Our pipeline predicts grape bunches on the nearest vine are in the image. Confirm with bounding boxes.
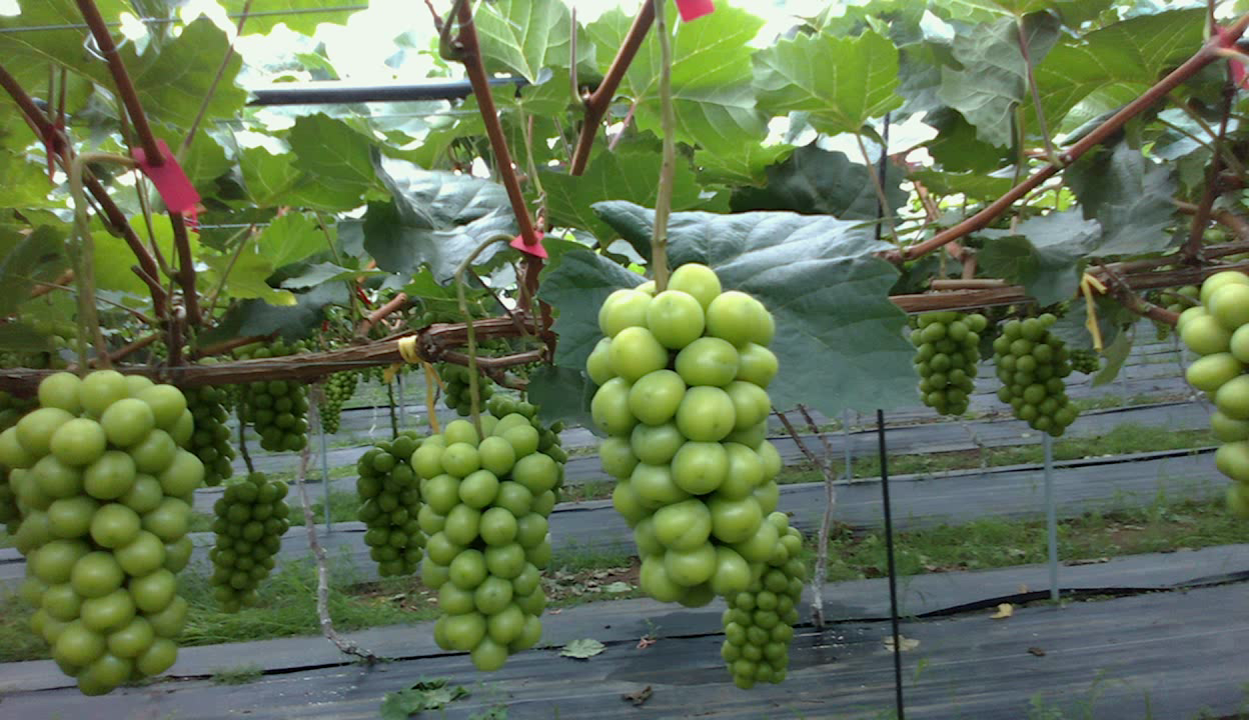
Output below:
[411,414,557,674]
[585,263,783,608]
[1177,269,1248,478]
[1,370,205,698]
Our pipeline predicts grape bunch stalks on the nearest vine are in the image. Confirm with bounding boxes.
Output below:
[72,150,141,367]
[651,0,674,294]
[453,234,515,440]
